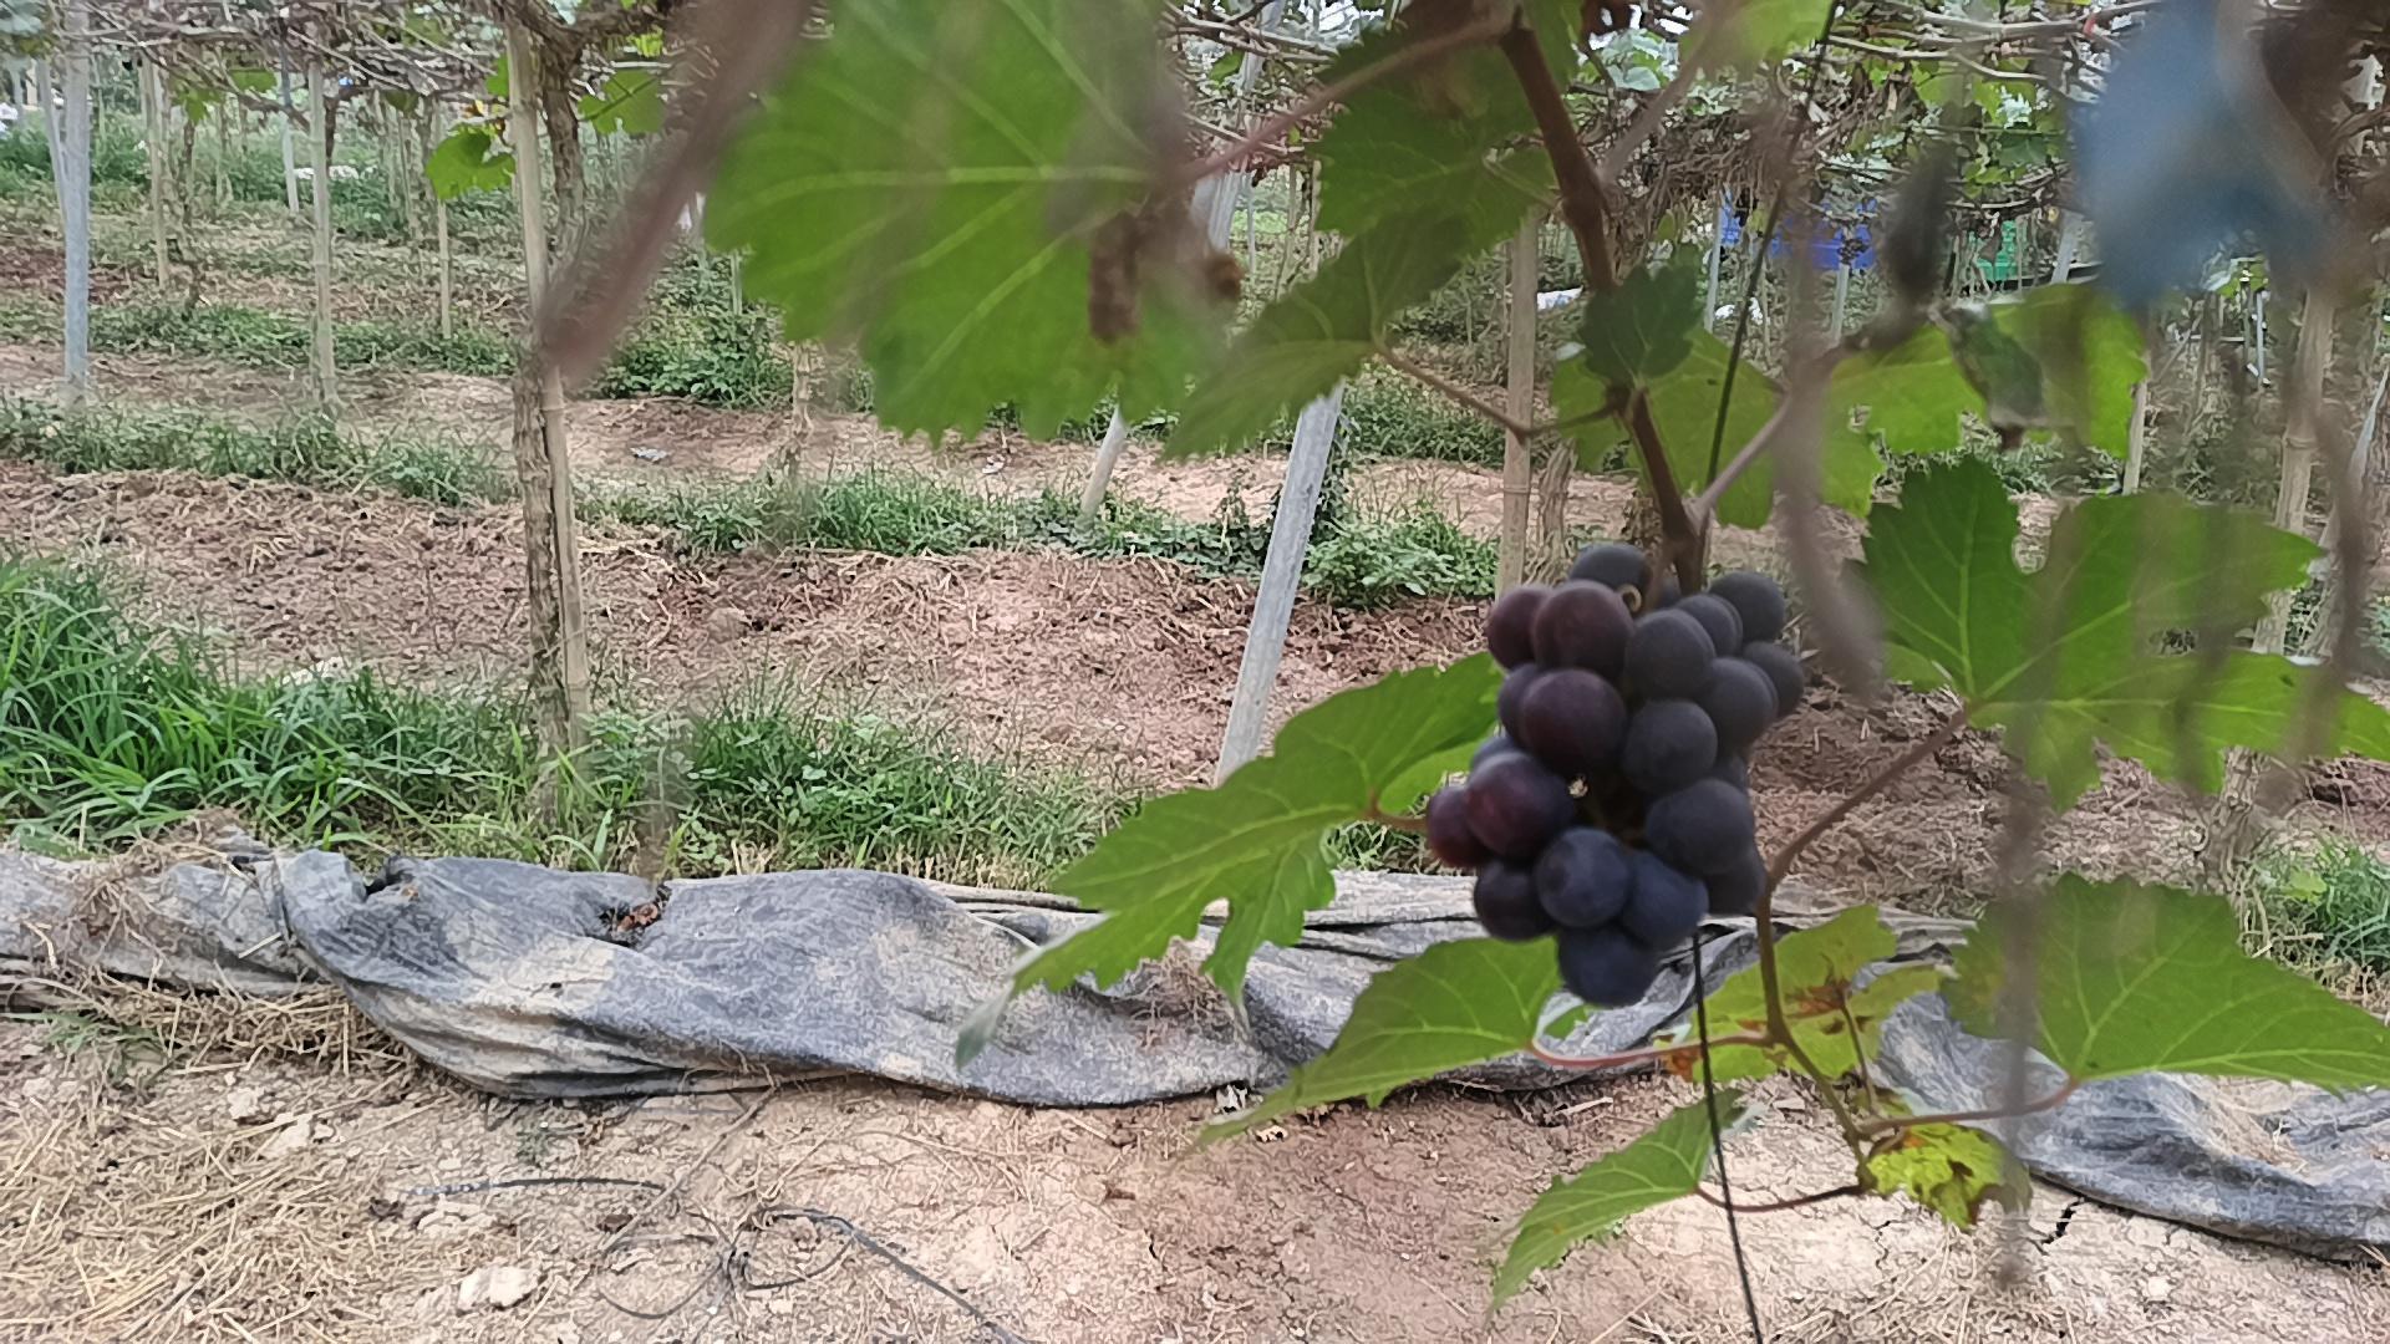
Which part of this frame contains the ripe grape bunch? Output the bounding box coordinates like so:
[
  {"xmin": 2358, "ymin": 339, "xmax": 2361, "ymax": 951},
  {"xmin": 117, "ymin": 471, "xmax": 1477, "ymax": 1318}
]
[{"xmin": 1427, "ymin": 544, "xmax": 1802, "ymax": 1006}]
